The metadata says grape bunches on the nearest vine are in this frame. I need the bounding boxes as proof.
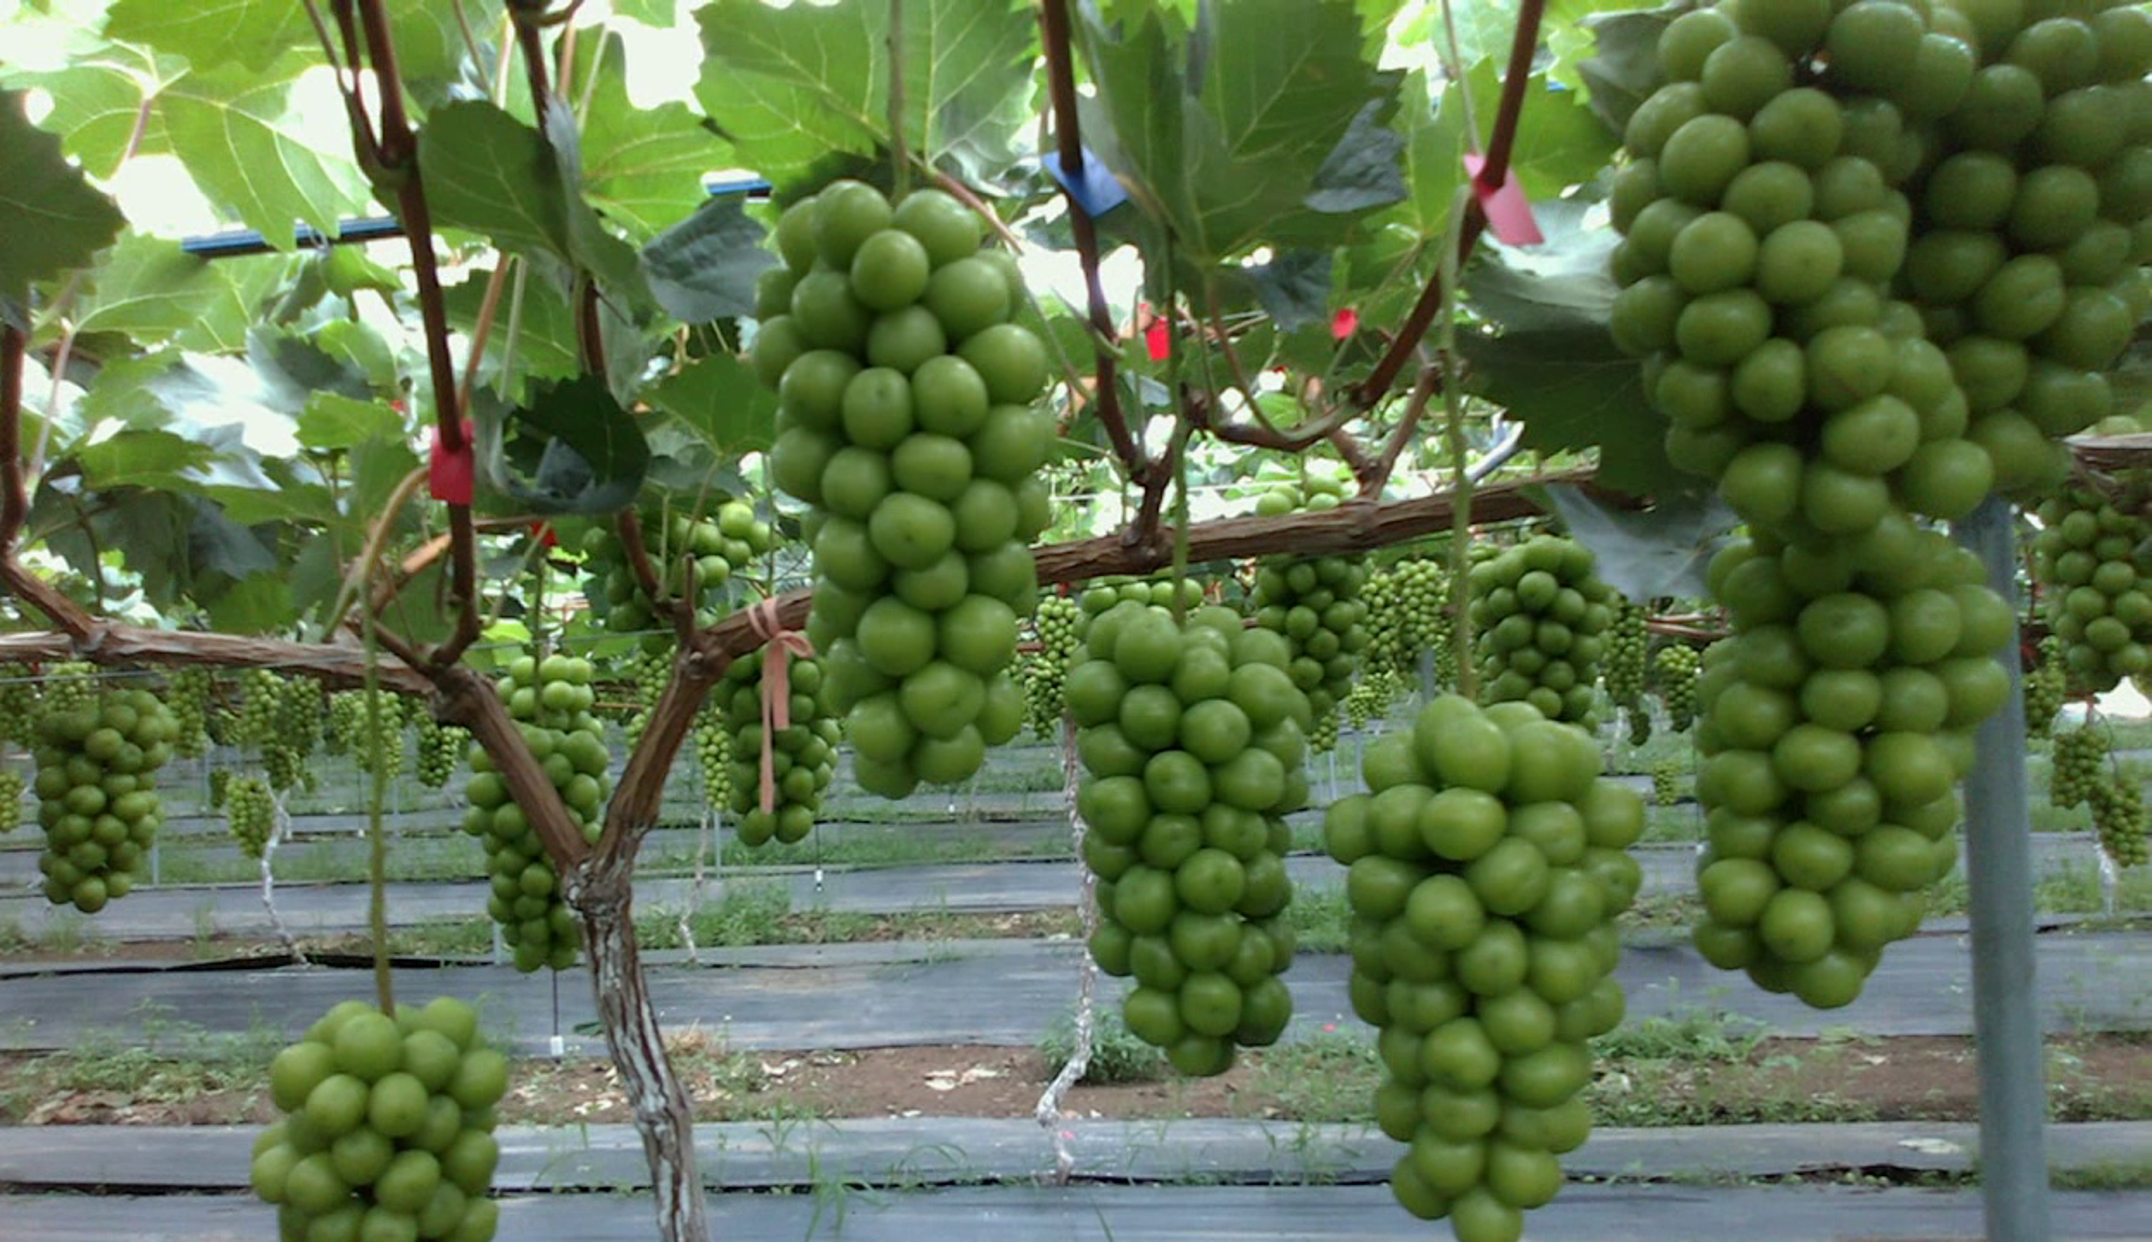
[248,997,510,1240]
[750,179,1057,800]
[1609,0,1995,535]
[1323,693,1645,1240]
[1690,507,2019,1009]
[1892,0,2150,499]
[1064,599,1311,1076]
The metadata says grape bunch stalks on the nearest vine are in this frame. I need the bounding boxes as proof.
[359,464,431,1019]
[886,0,909,210]
[1435,183,1476,700]
[1114,171,1188,633]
